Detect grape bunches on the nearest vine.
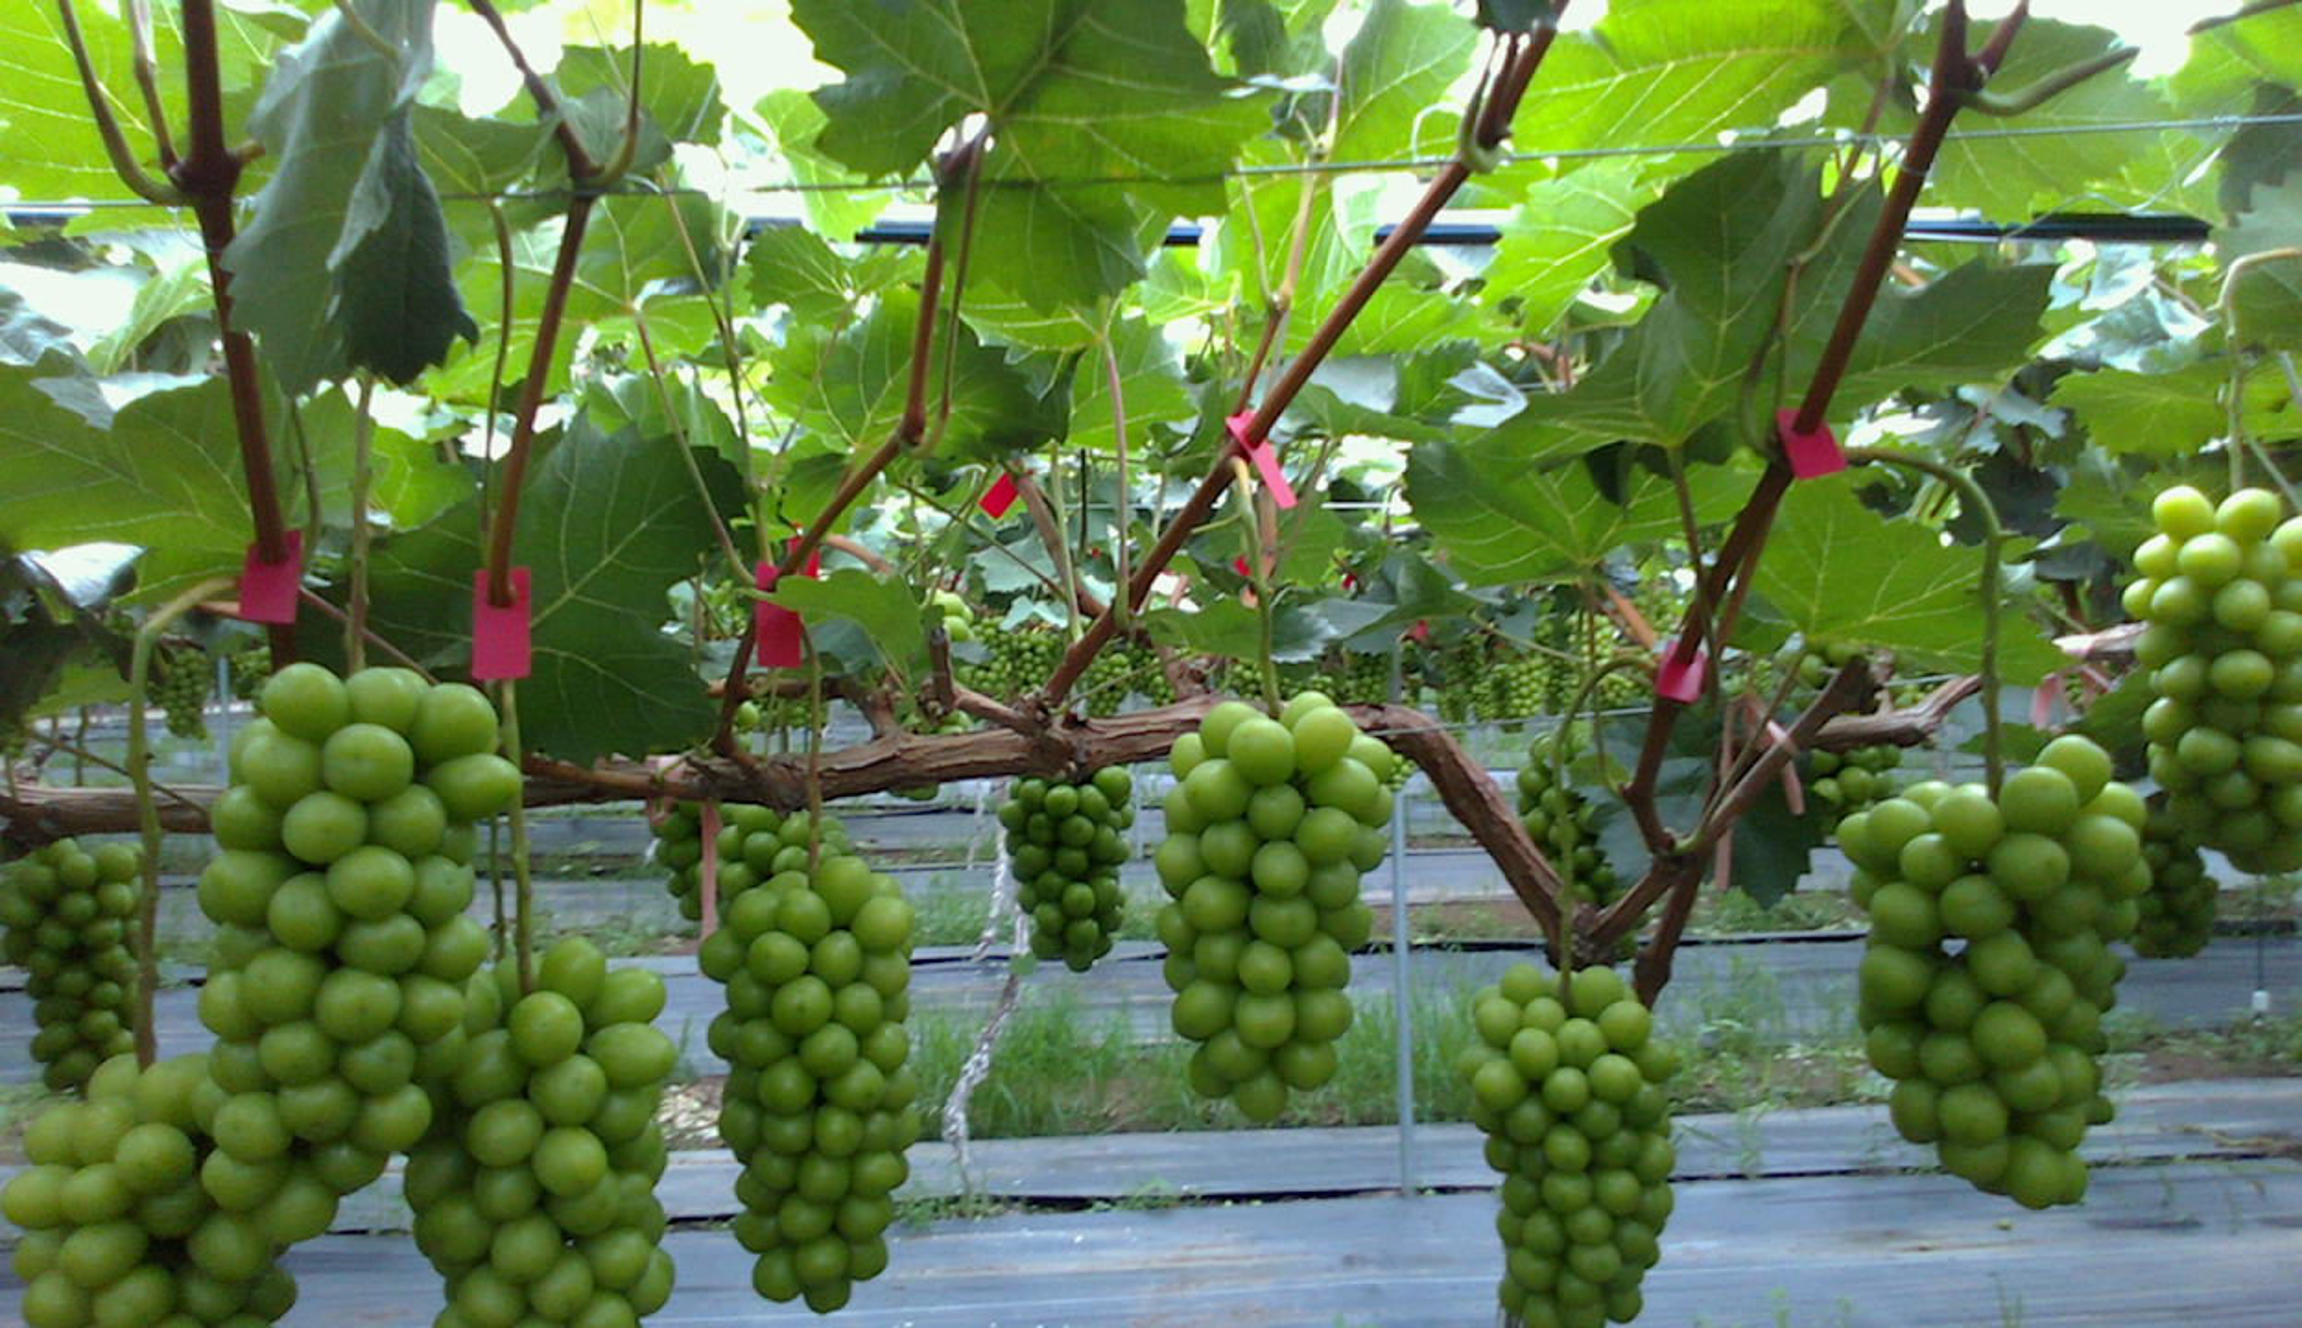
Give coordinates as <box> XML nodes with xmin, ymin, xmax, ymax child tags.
<box><xmin>192</xmin><ymin>658</ymin><xmax>515</xmax><ymax>1236</ymax></box>
<box><xmin>2119</xmin><ymin>483</ymin><xmax>2298</xmax><ymax>878</ymax></box>
<box><xmin>1839</xmin><ymin>734</ymin><xmax>2154</xmax><ymax>1212</ymax></box>
<box><xmin>1157</xmin><ymin>690</ymin><xmax>1402</xmax><ymax>1120</ymax></box>
<box><xmin>701</xmin><ymin>856</ymin><xmax>919</xmax><ymax>1315</ymax></box>
<box><xmin>406</xmin><ymin>931</ymin><xmax>677</xmax><ymax>1326</ymax></box>
<box><xmin>2</xmin><ymin>1051</ymin><xmax>301</xmax><ymax>1326</ymax></box>
<box><xmin>1454</xmin><ymin>963</ymin><xmax>1682</xmax><ymax>1326</ymax></box>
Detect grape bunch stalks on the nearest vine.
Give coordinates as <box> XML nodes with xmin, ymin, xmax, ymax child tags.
<box><xmin>1841</xmin><ymin>445</ymin><xmax>2005</xmax><ymax>802</ymax></box>
<box><xmin>347</xmin><ymin>384</ymin><xmax>369</xmax><ymax>679</ymax></box>
<box><xmin>802</xmin><ymin>625</ymin><xmax>821</xmax><ymax>889</ymax></box>
<box><xmin>127</xmin><ymin>575</ymin><xmax>245</xmax><ymax>1075</ymax></box>
<box><xmin>1551</xmin><ymin>657</ymin><xmax>1656</xmax><ymax>1014</ymax></box>
<box><xmin>1230</xmin><ymin>456</ymin><xmax>1280</xmax><ymax>719</ymax></box>
<box><xmin>2221</xmin><ymin>247</ymin><xmax>2300</xmax><ymax>492</ymax></box>
<box><xmin>500</xmin><ymin>681</ymin><xmax>533</xmax><ymax>996</ymax></box>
